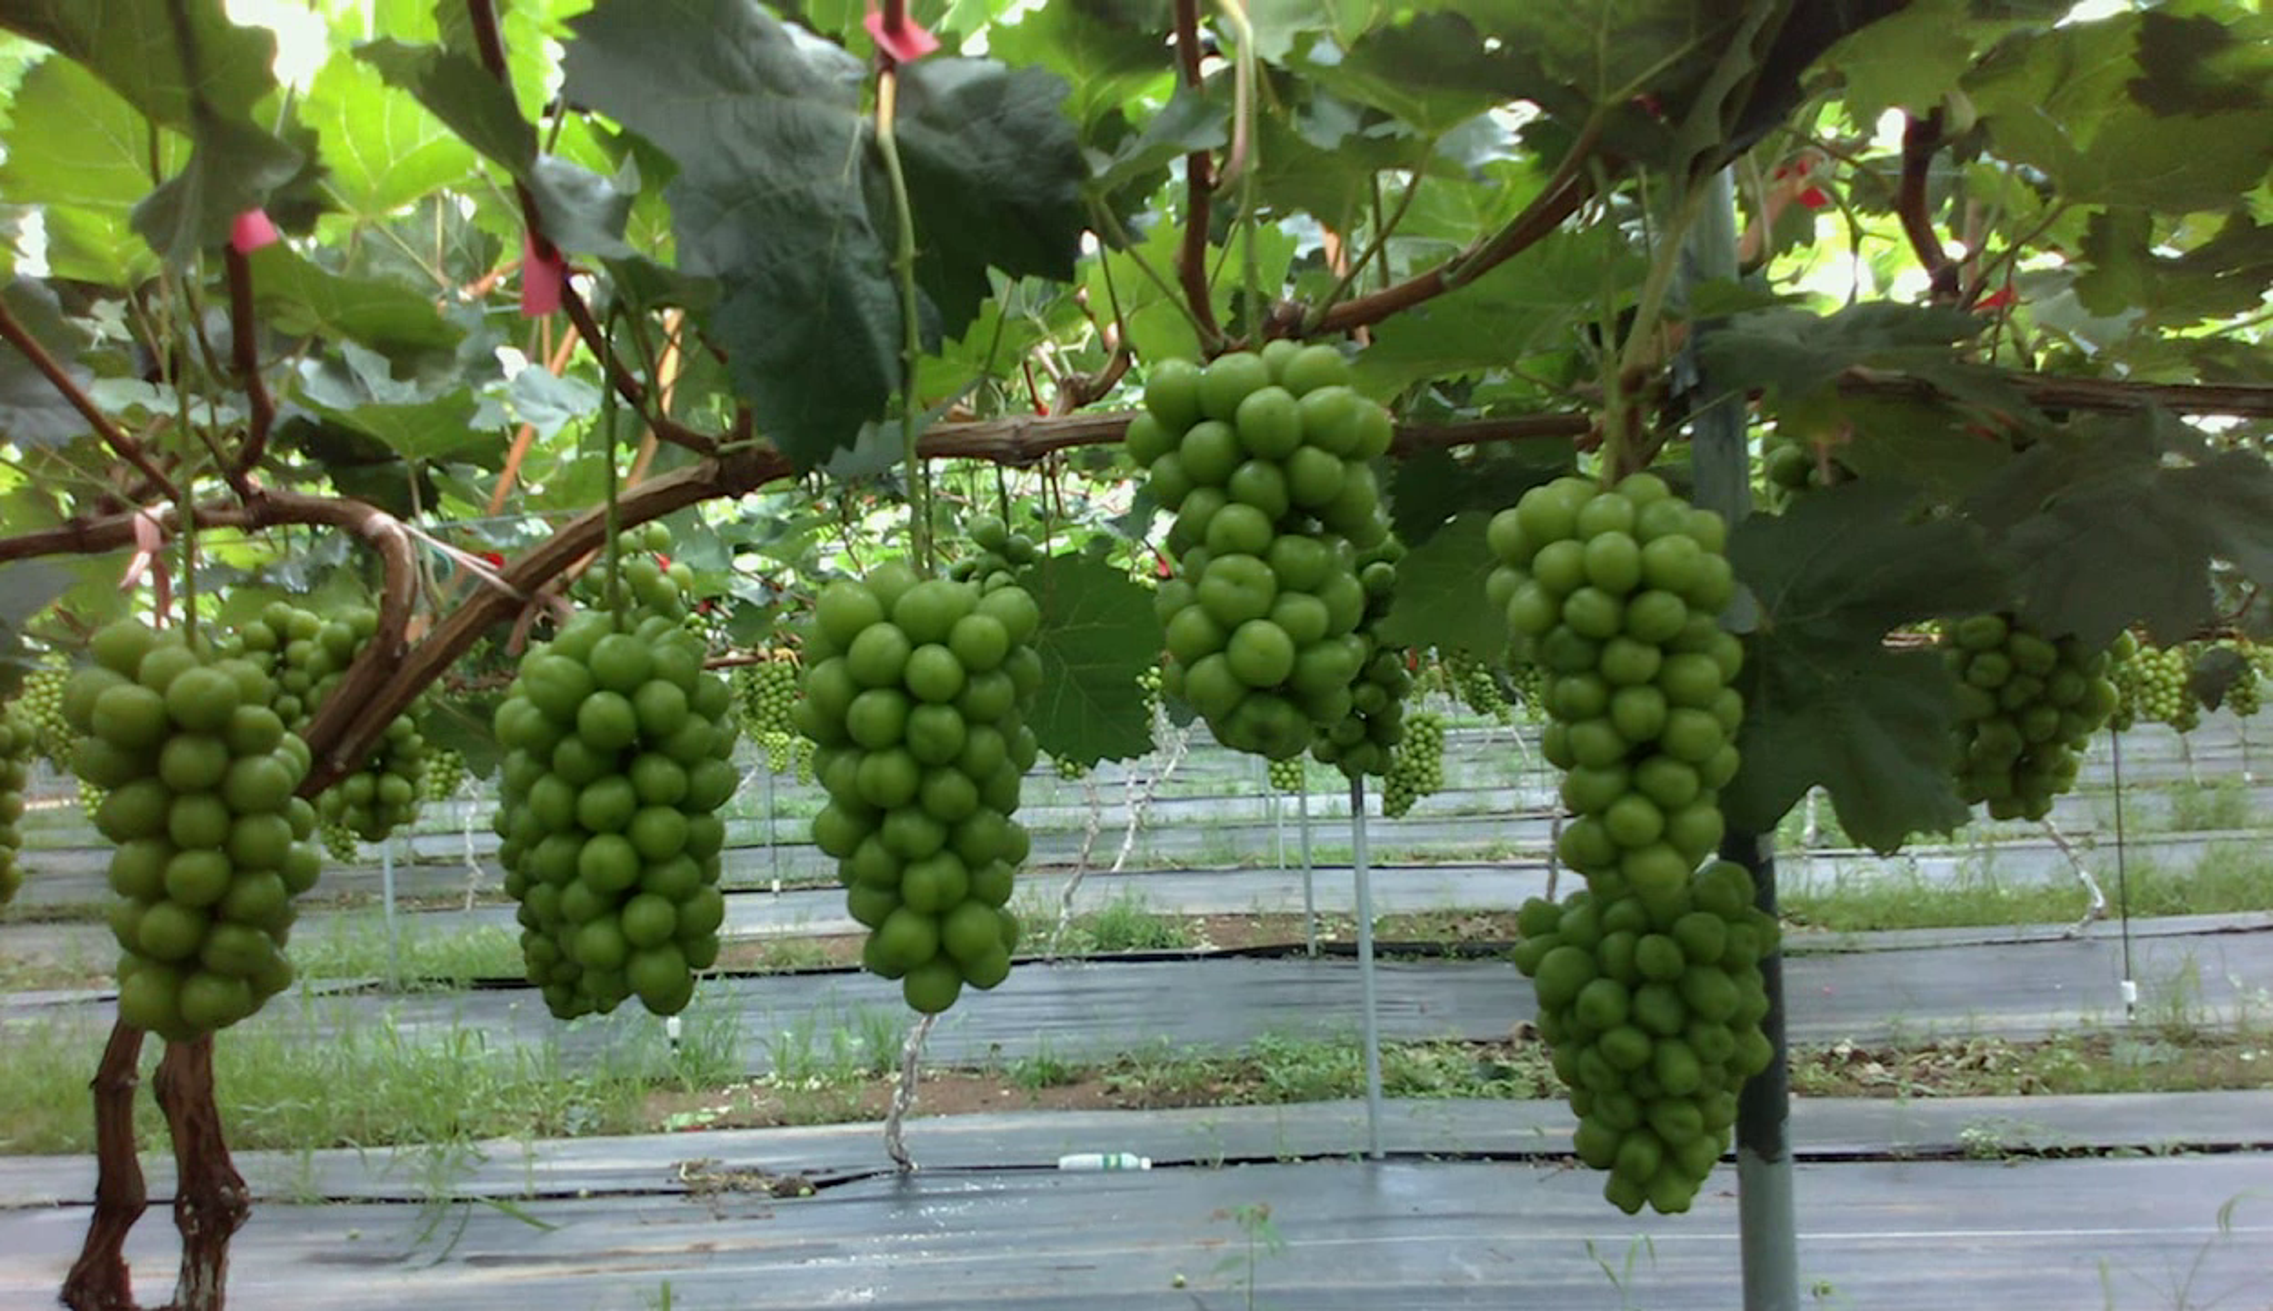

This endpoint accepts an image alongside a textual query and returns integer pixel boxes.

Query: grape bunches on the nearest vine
[492,608,739,1016]
[1510,861,1779,1216]
[1484,473,1745,903]
[1124,337,1393,761]
[60,621,322,1047]
[787,564,1045,1014]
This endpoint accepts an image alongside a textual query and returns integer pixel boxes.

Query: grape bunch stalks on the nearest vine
[876,69,925,577]
[173,328,197,643]
[1217,2,1264,355]
[599,297,623,632]
[1588,155,1628,490]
